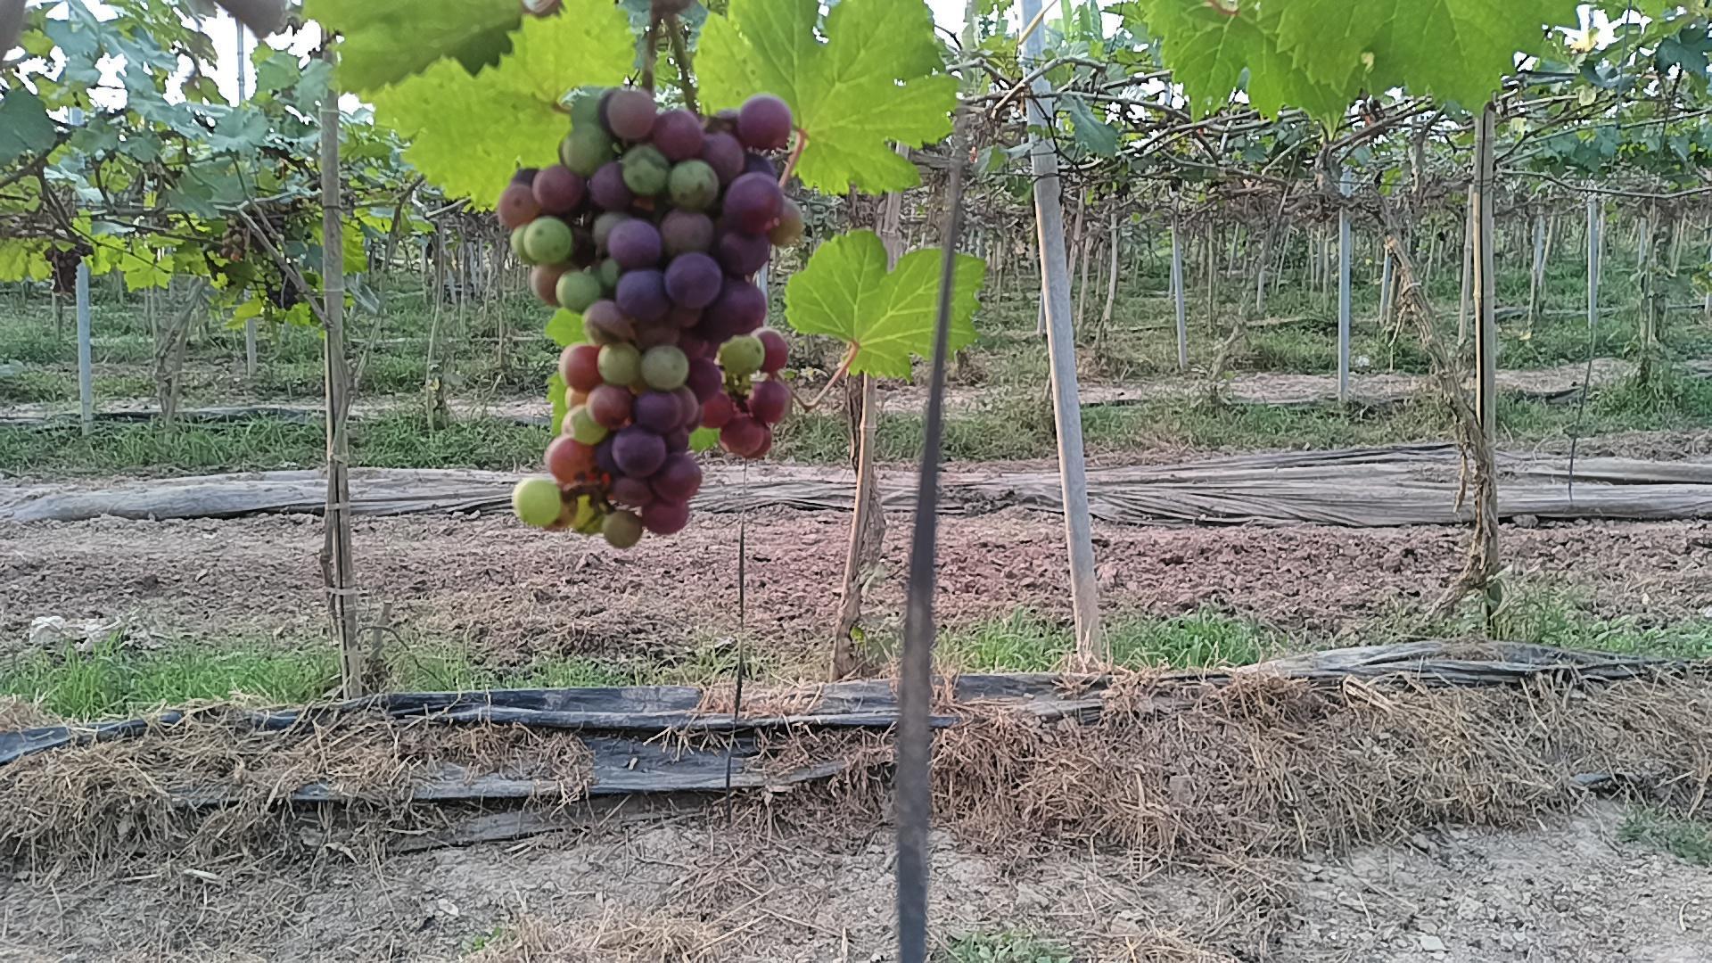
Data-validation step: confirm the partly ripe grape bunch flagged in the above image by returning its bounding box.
[499,88,802,547]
